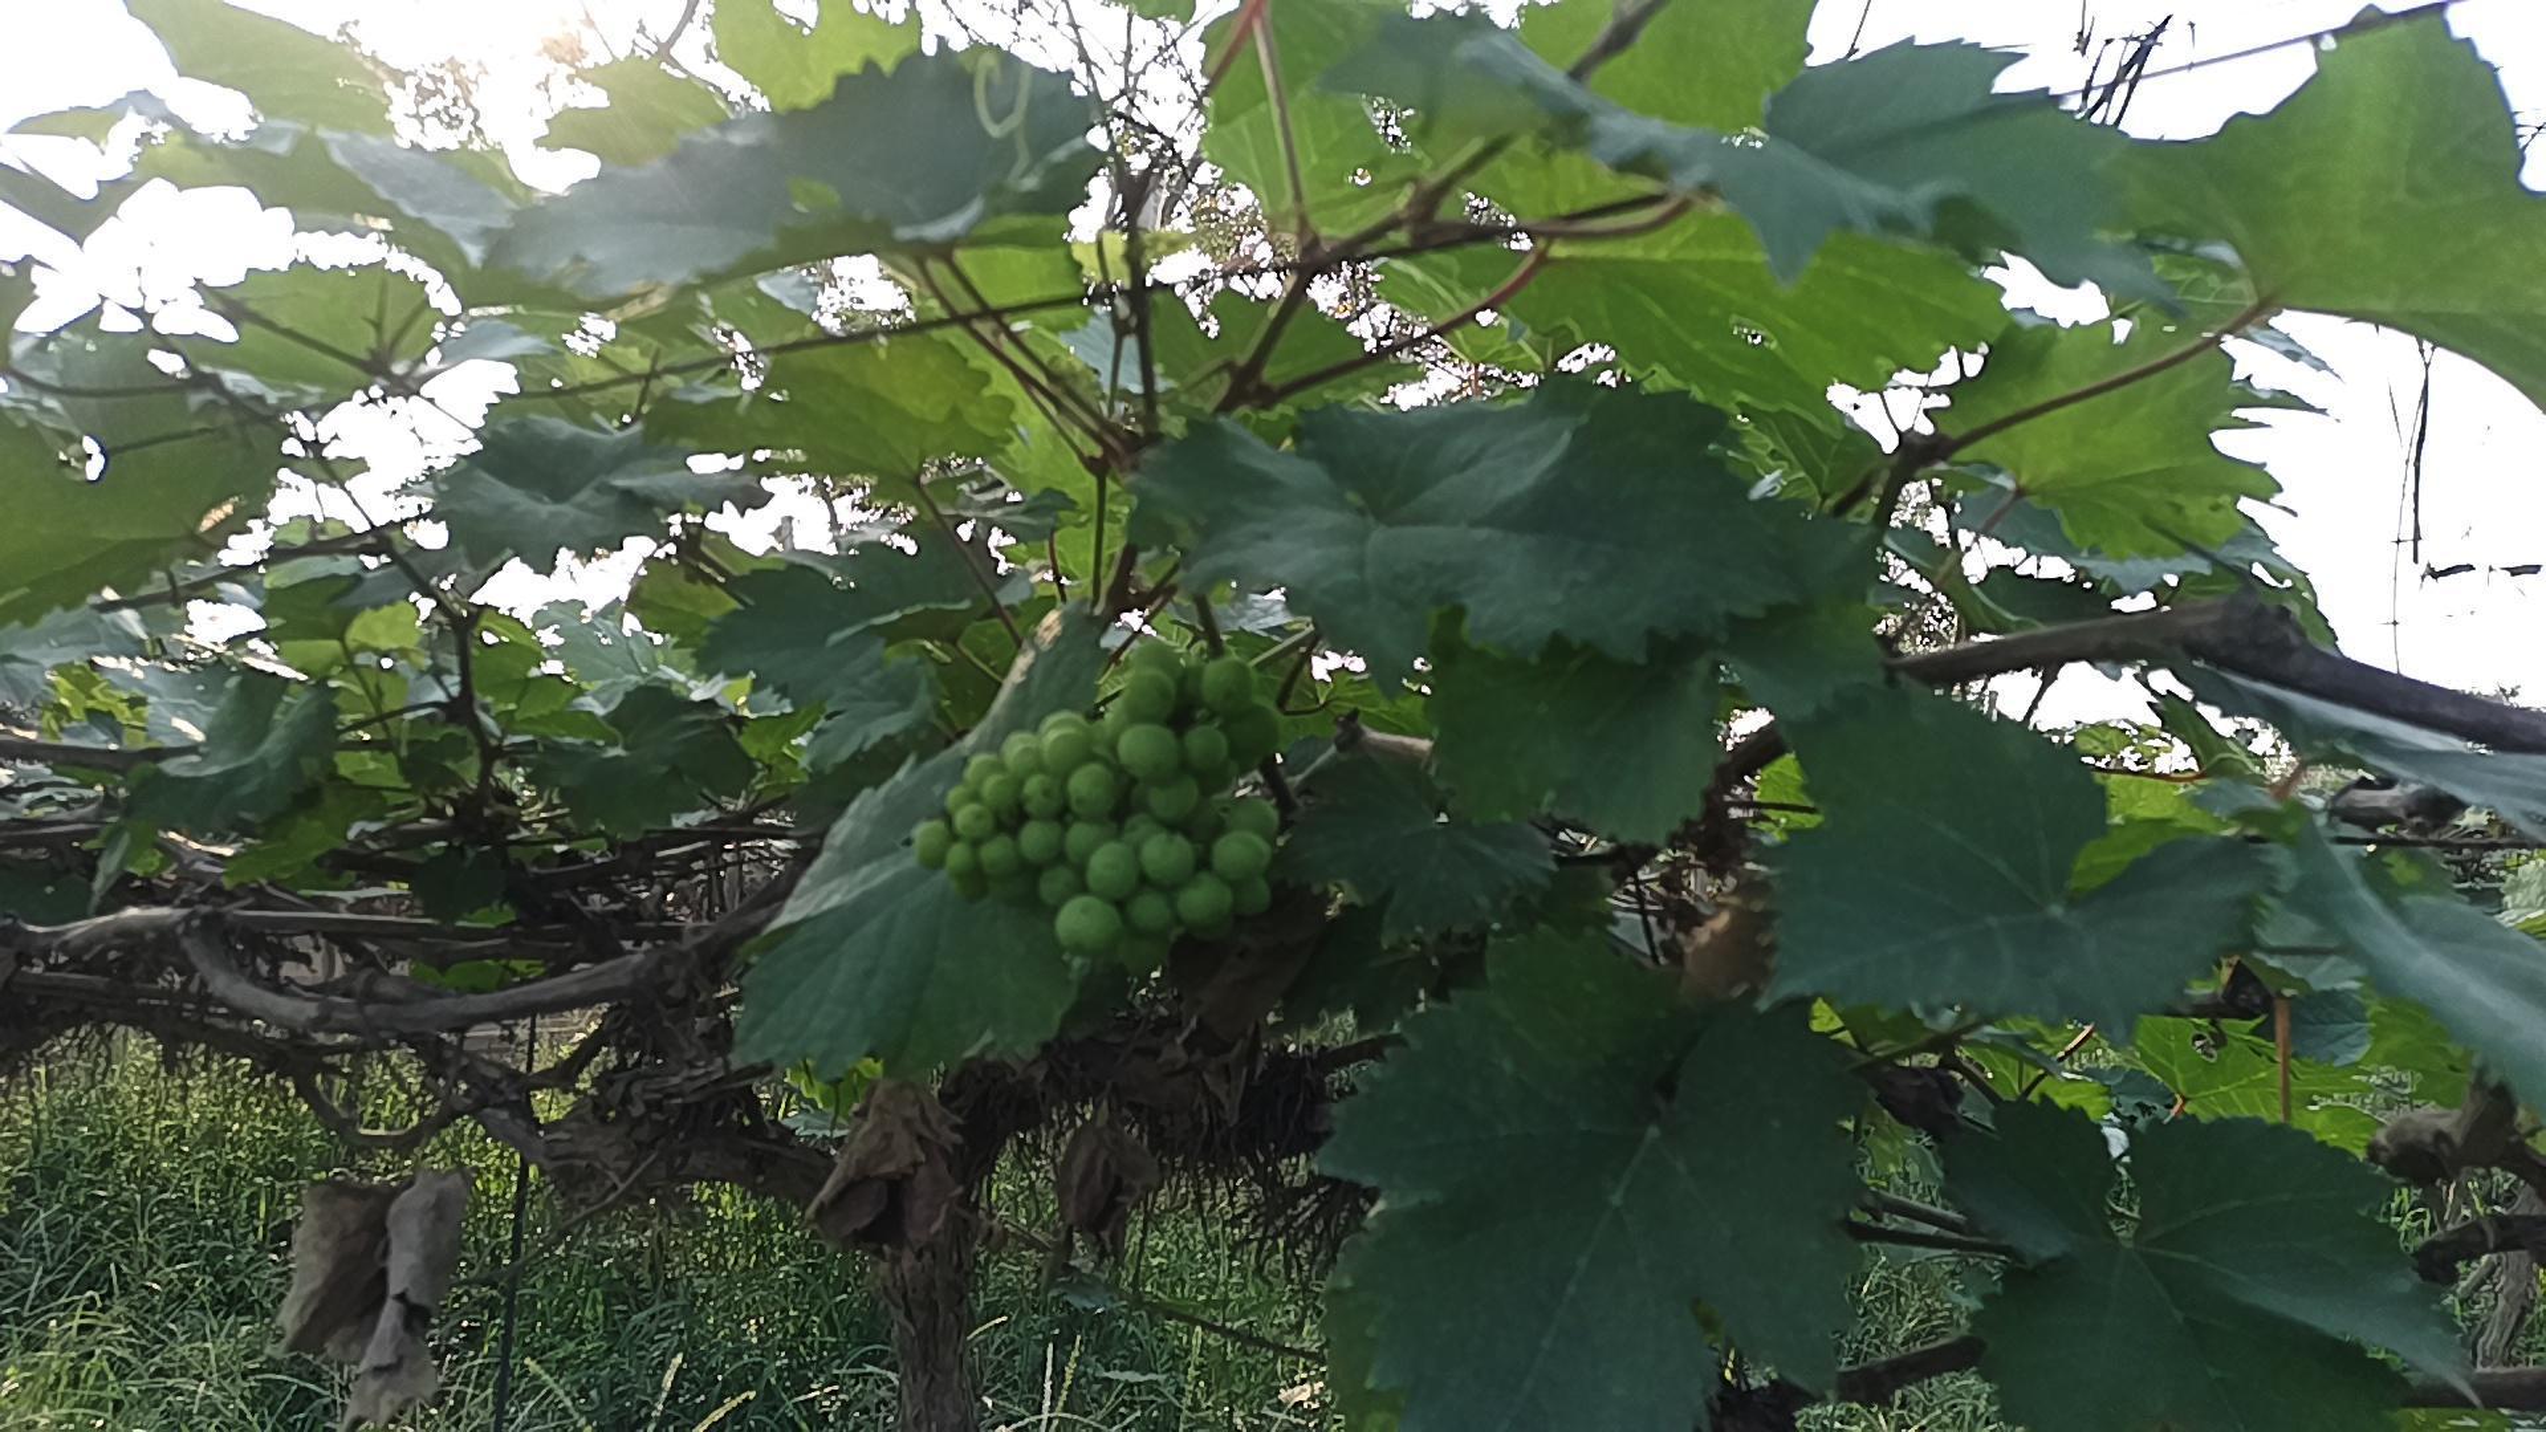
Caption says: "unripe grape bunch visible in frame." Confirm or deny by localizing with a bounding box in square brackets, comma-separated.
[914, 639, 1278, 959]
